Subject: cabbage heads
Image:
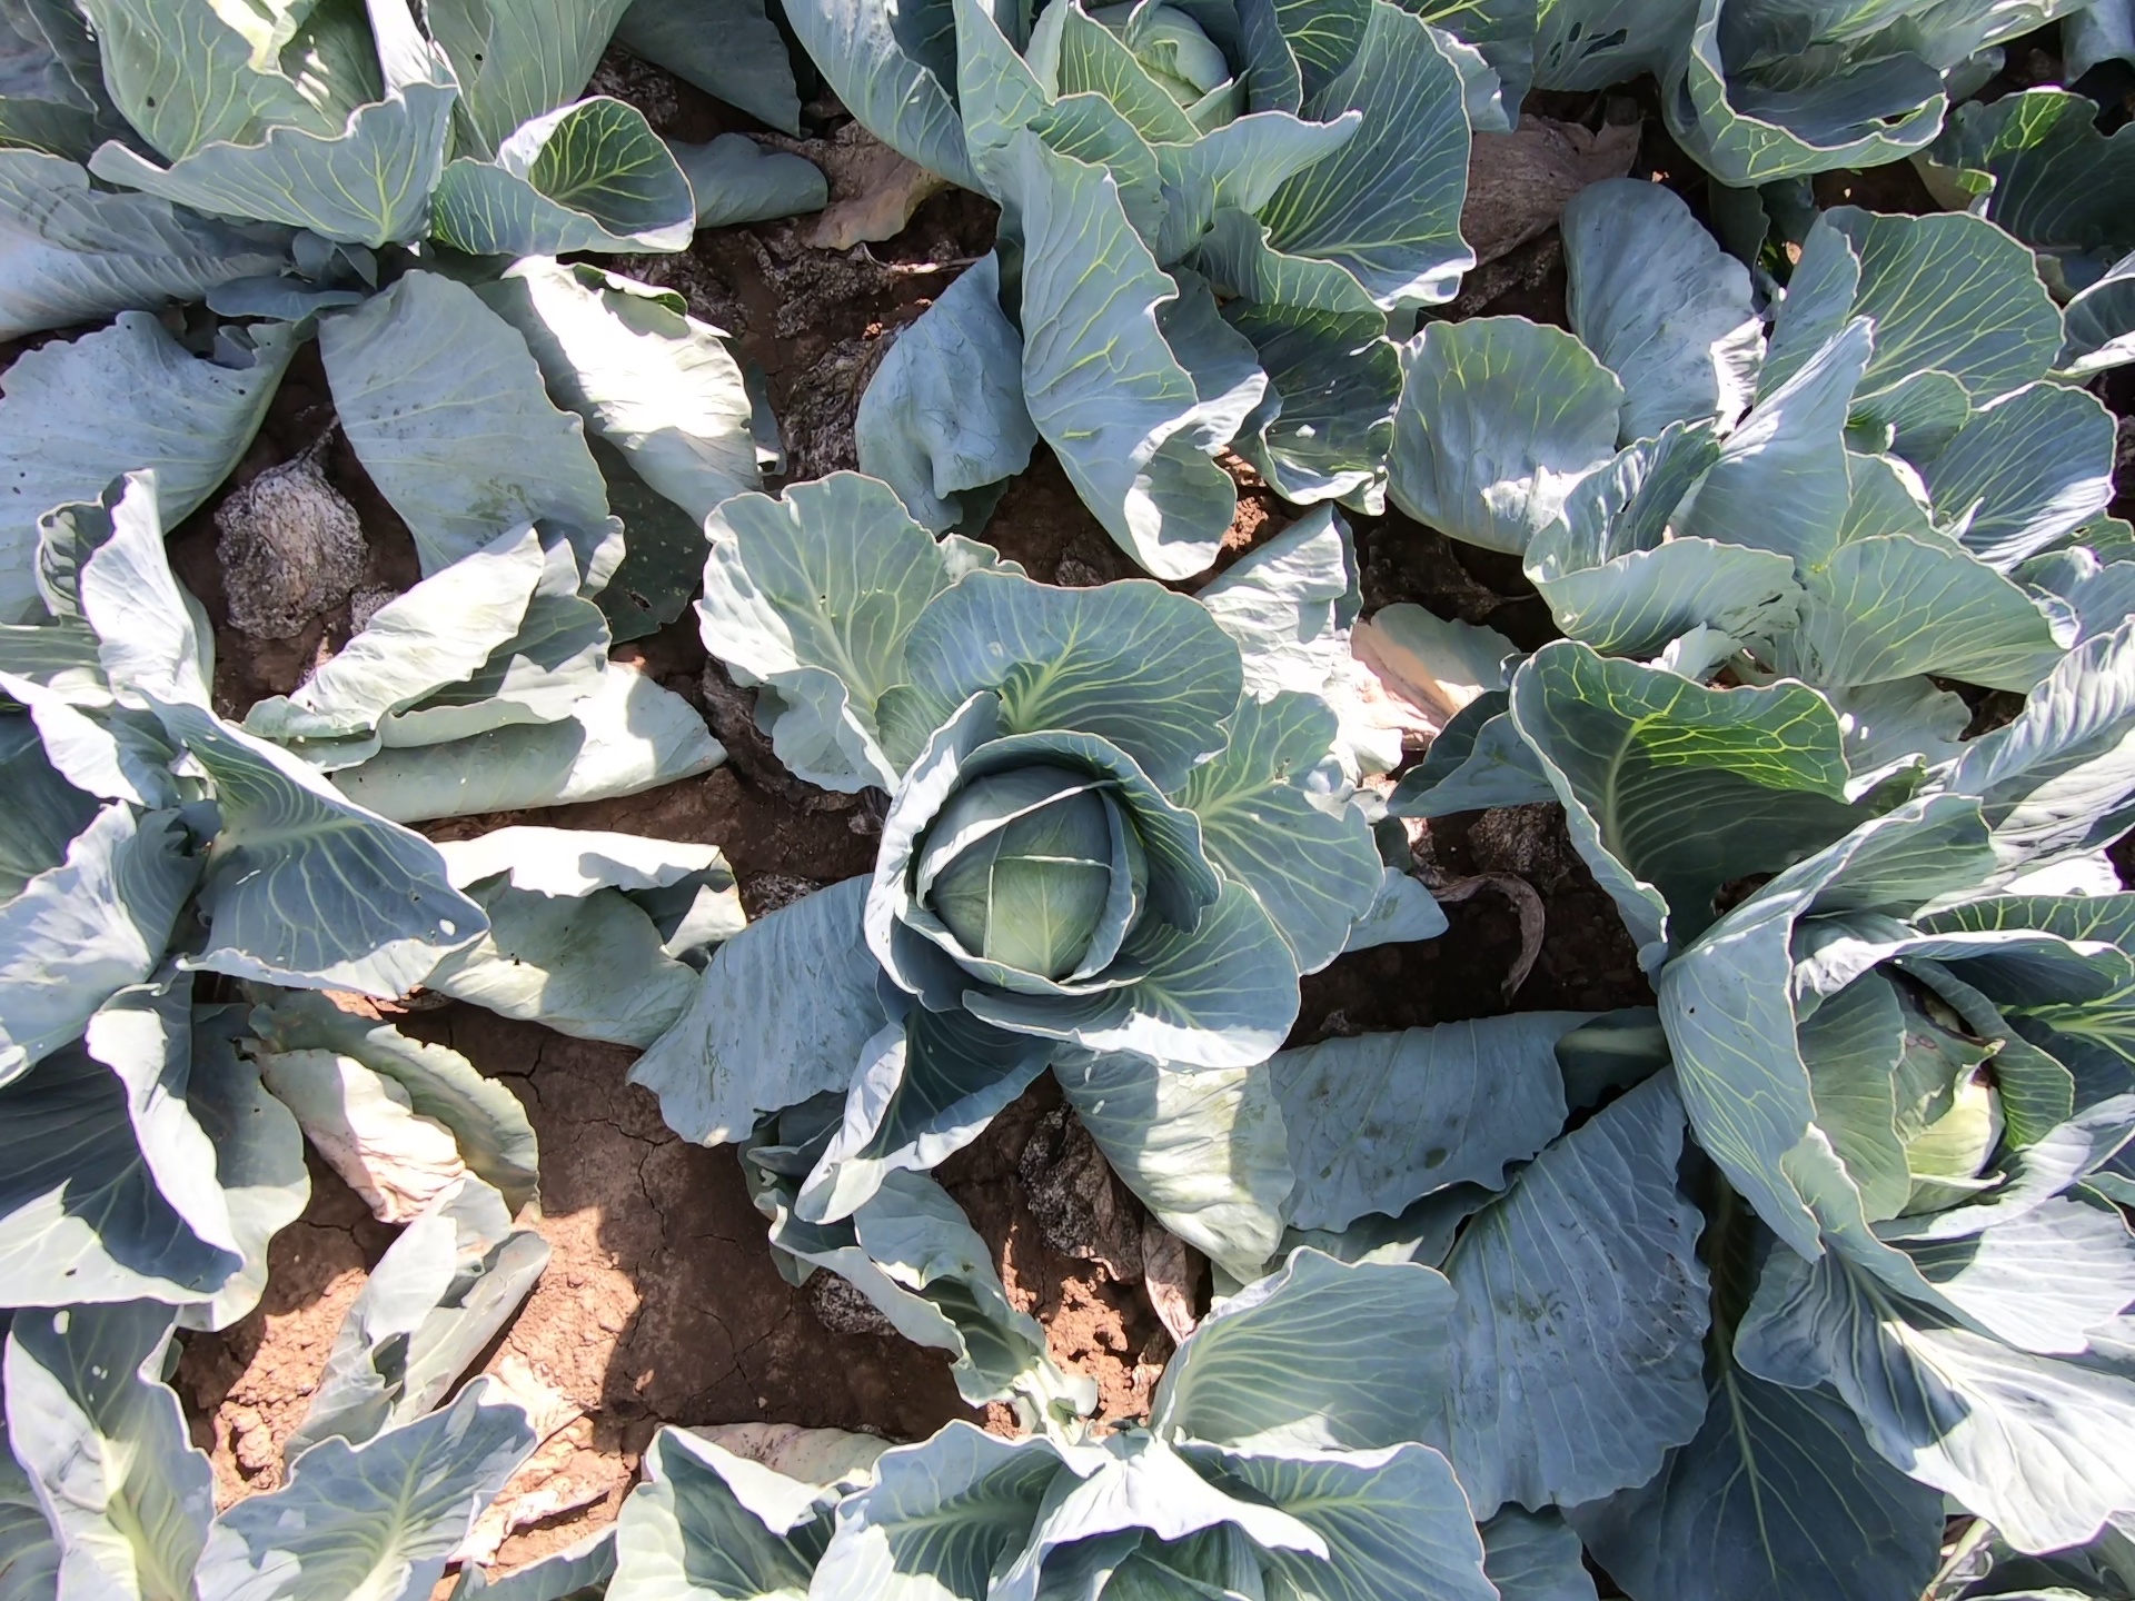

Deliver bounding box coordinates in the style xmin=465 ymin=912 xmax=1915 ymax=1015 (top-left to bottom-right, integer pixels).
xmin=109 ymin=0 xmax=413 ymax=185
xmin=1044 ymin=4 xmax=1241 ymax=239
xmin=1741 ymin=439 xmax=1934 ymax=636
xmin=1746 ymin=965 xmax=1999 ymax=1207
xmin=1020 ymin=1469 xmax=1267 ymax=1601
xmin=921 ymin=768 xmax=1141 ymax=990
